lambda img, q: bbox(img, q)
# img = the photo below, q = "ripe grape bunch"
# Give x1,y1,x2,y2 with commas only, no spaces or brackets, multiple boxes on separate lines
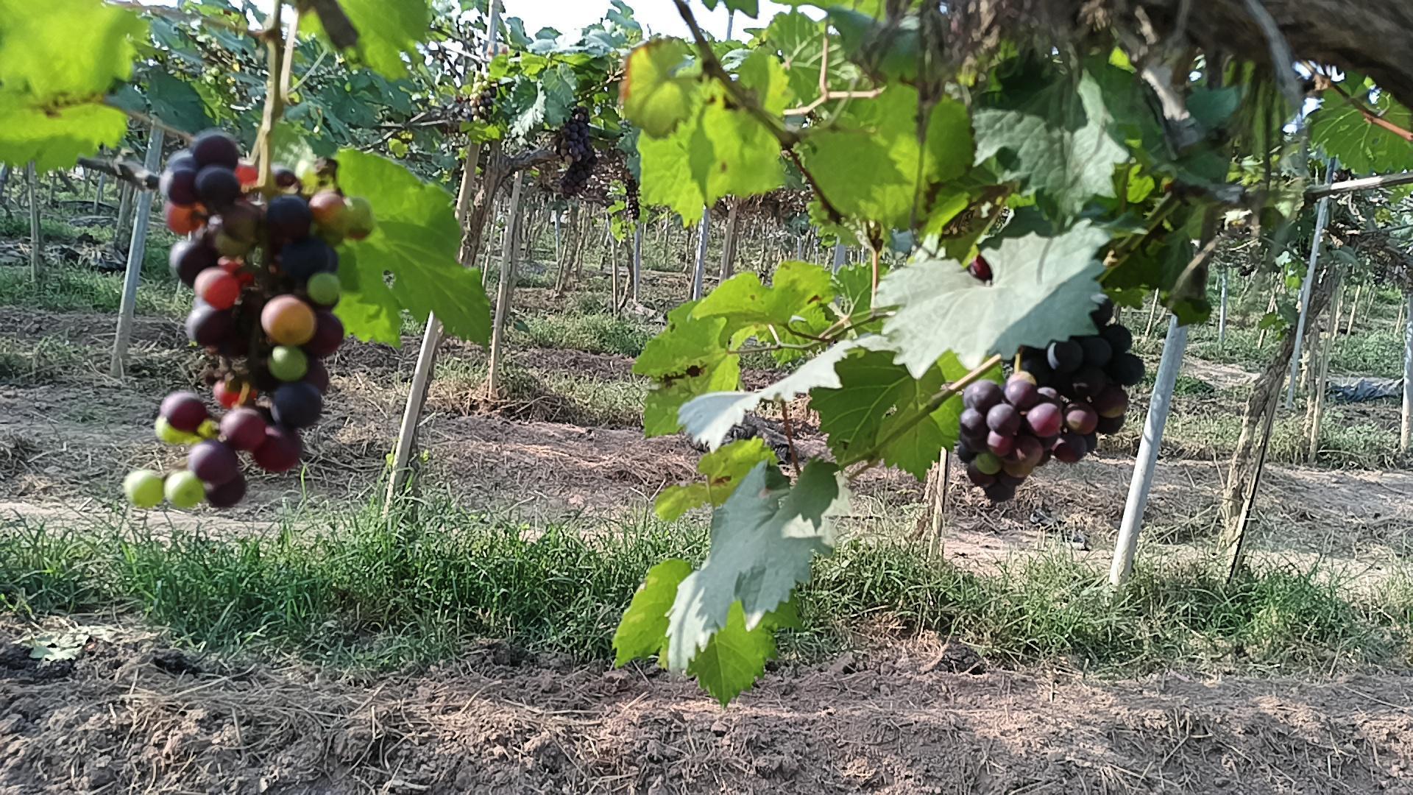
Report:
620,174,640,221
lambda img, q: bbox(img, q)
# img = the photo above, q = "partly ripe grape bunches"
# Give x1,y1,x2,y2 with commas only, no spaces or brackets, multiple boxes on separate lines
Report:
463,68,498,124
955,297,1144,503
554,106,598,198
125,129,373,506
